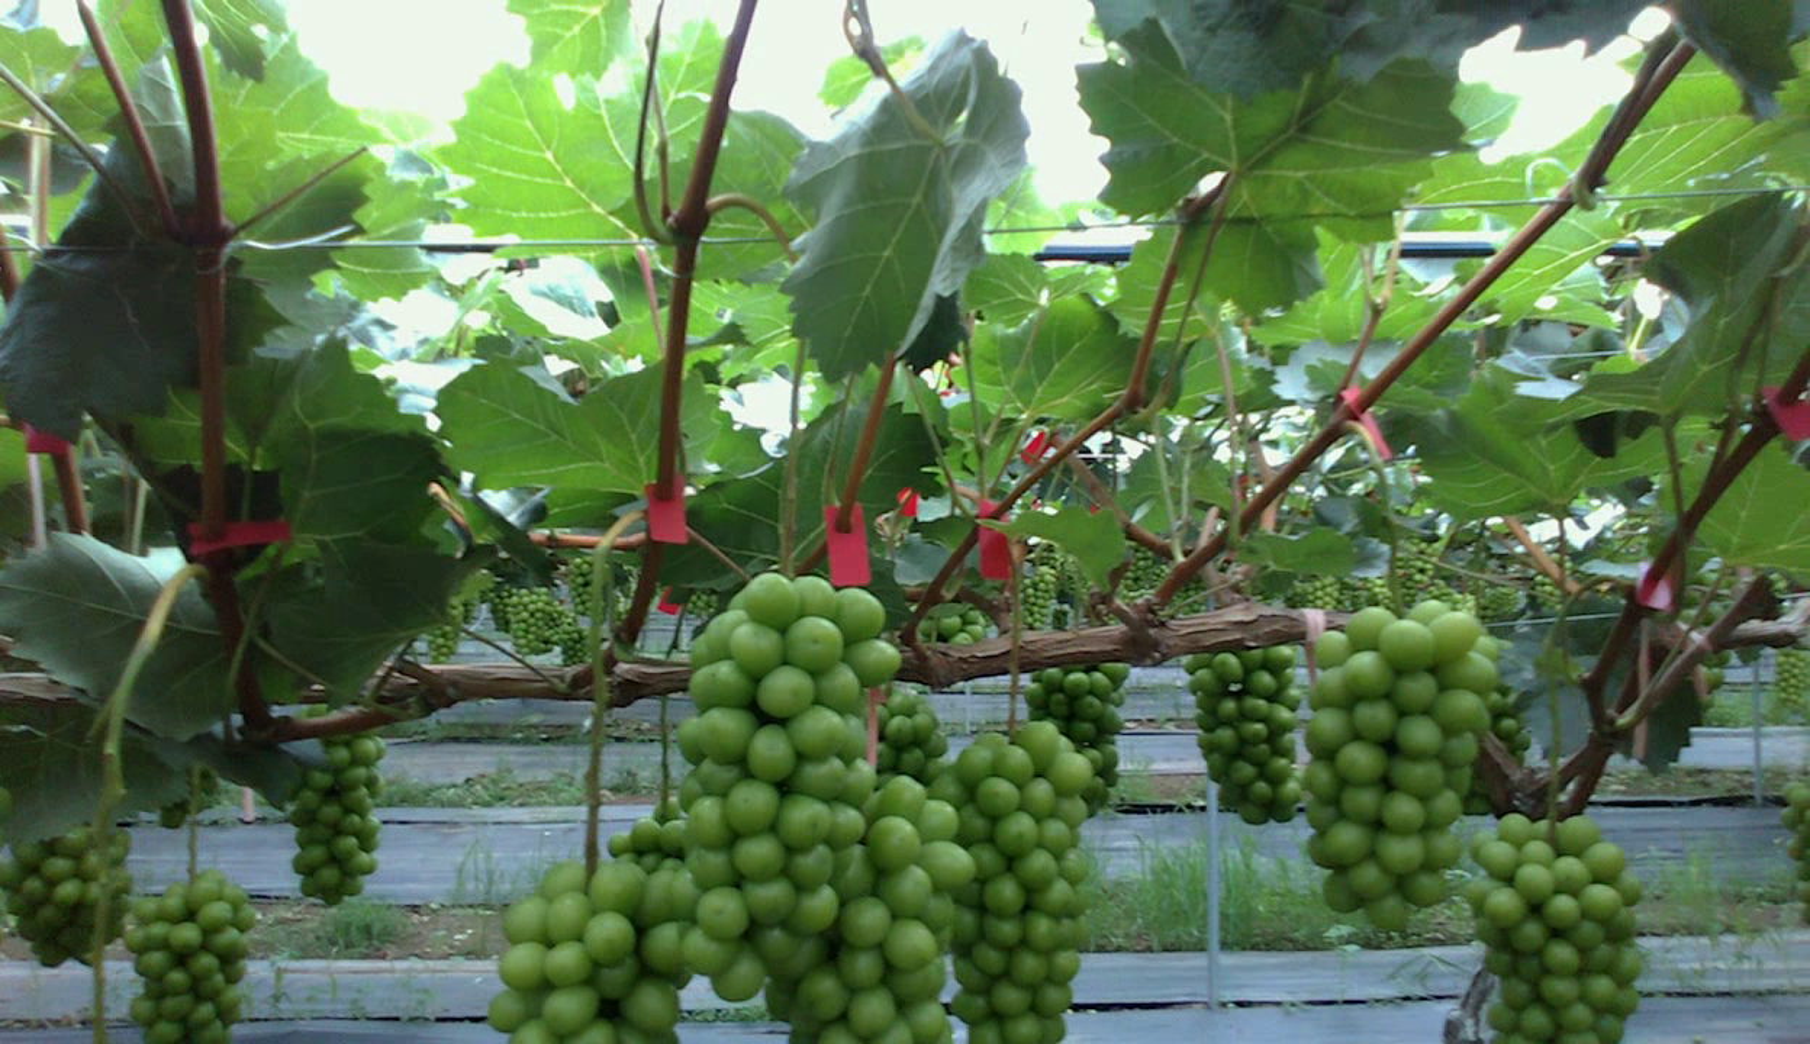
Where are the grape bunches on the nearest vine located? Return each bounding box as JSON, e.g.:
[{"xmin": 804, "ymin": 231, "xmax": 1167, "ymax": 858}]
[
  {"xmin": 1302, "ymin": 599, "xmax": 1501, "ymax": 929},
  {"xmin": 764, "ymin": 774, "xmax": 976, "ymax": 1043},
  {"xmin": 925, "ymin": 721, "xmax": 1094, "ymax": 1043},
  {"xmin": 1463, "ymin": 813, "xmax": 1643, "ymax": 1043},
  {"xmin": 670, "ymin": 571, "xmax": 904, "ymax": 1002},
  {"xmin": 487, "ymin": 858, "xmax": 690, "ymax": 1043}
]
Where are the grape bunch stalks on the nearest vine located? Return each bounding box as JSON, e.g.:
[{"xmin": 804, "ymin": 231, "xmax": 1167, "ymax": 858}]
[
  {"xmin": 1343, "ymin": 419, "xmax": 1405, "ymax": 619},
  {"xmin": 582, "ymin": 509, "xmax": 647, "ymax": 895},
  {"xmin": 711, "ymin": 196, "xmax": 803, "ymax": 581},
  {"xmin": 1543, "ymin": 573, "xmax": 1629, "ymax": 857}
]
